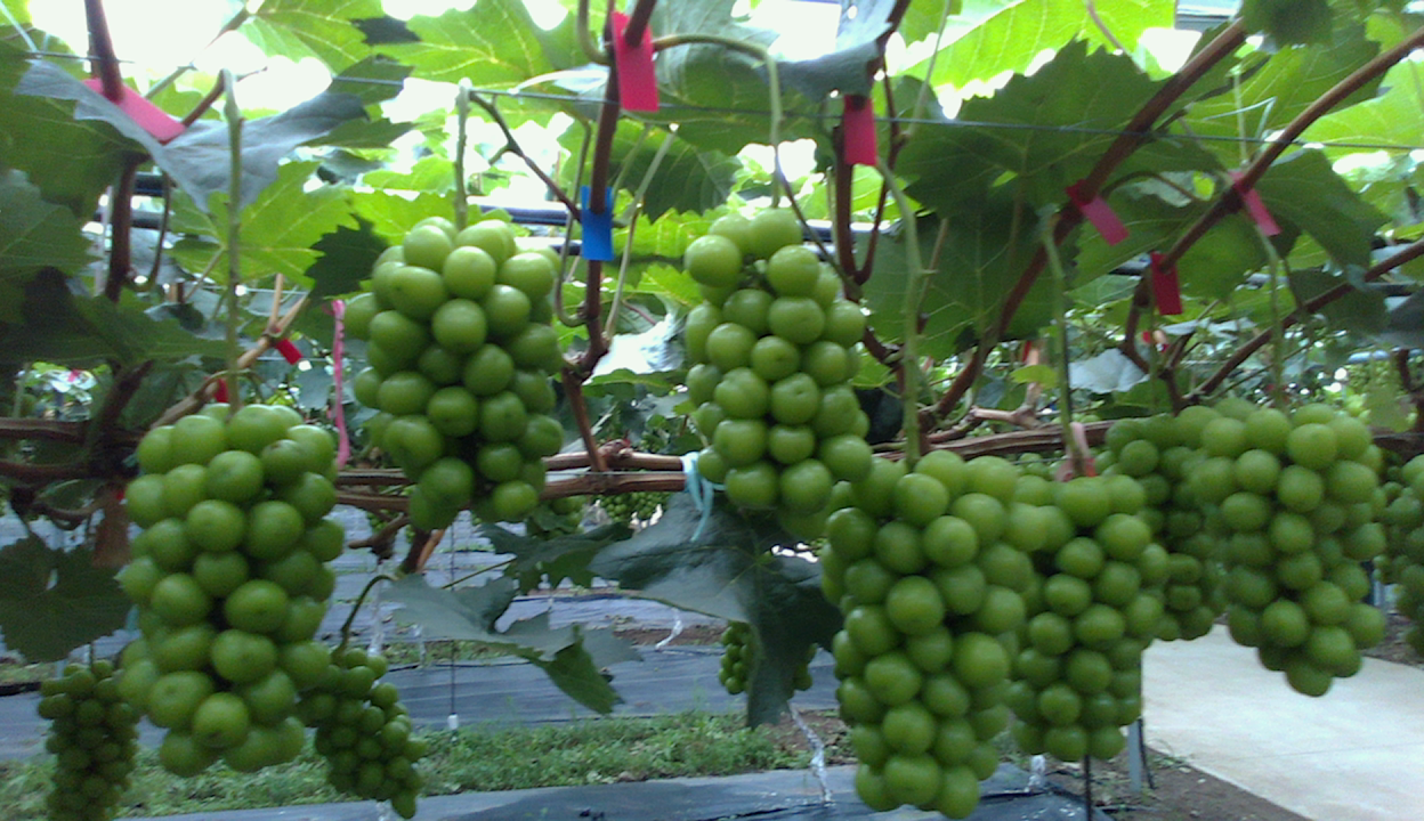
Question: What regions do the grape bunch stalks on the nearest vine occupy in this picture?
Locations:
[222,70,248,414]
[1235,204,1286,413]
[1042,210,1086,477]
[451,75,474,227]
[652,34,783,211]
[874,155,921,472]
[1146,267,1158,415]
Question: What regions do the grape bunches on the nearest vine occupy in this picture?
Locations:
[116,404,347,777]
[1006,474,1168,763]
[1098,414,1228,642]
[345,217,565,530]
[1175,398,1387,694]
[822,449,1051,818]
[683,210,875,535]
